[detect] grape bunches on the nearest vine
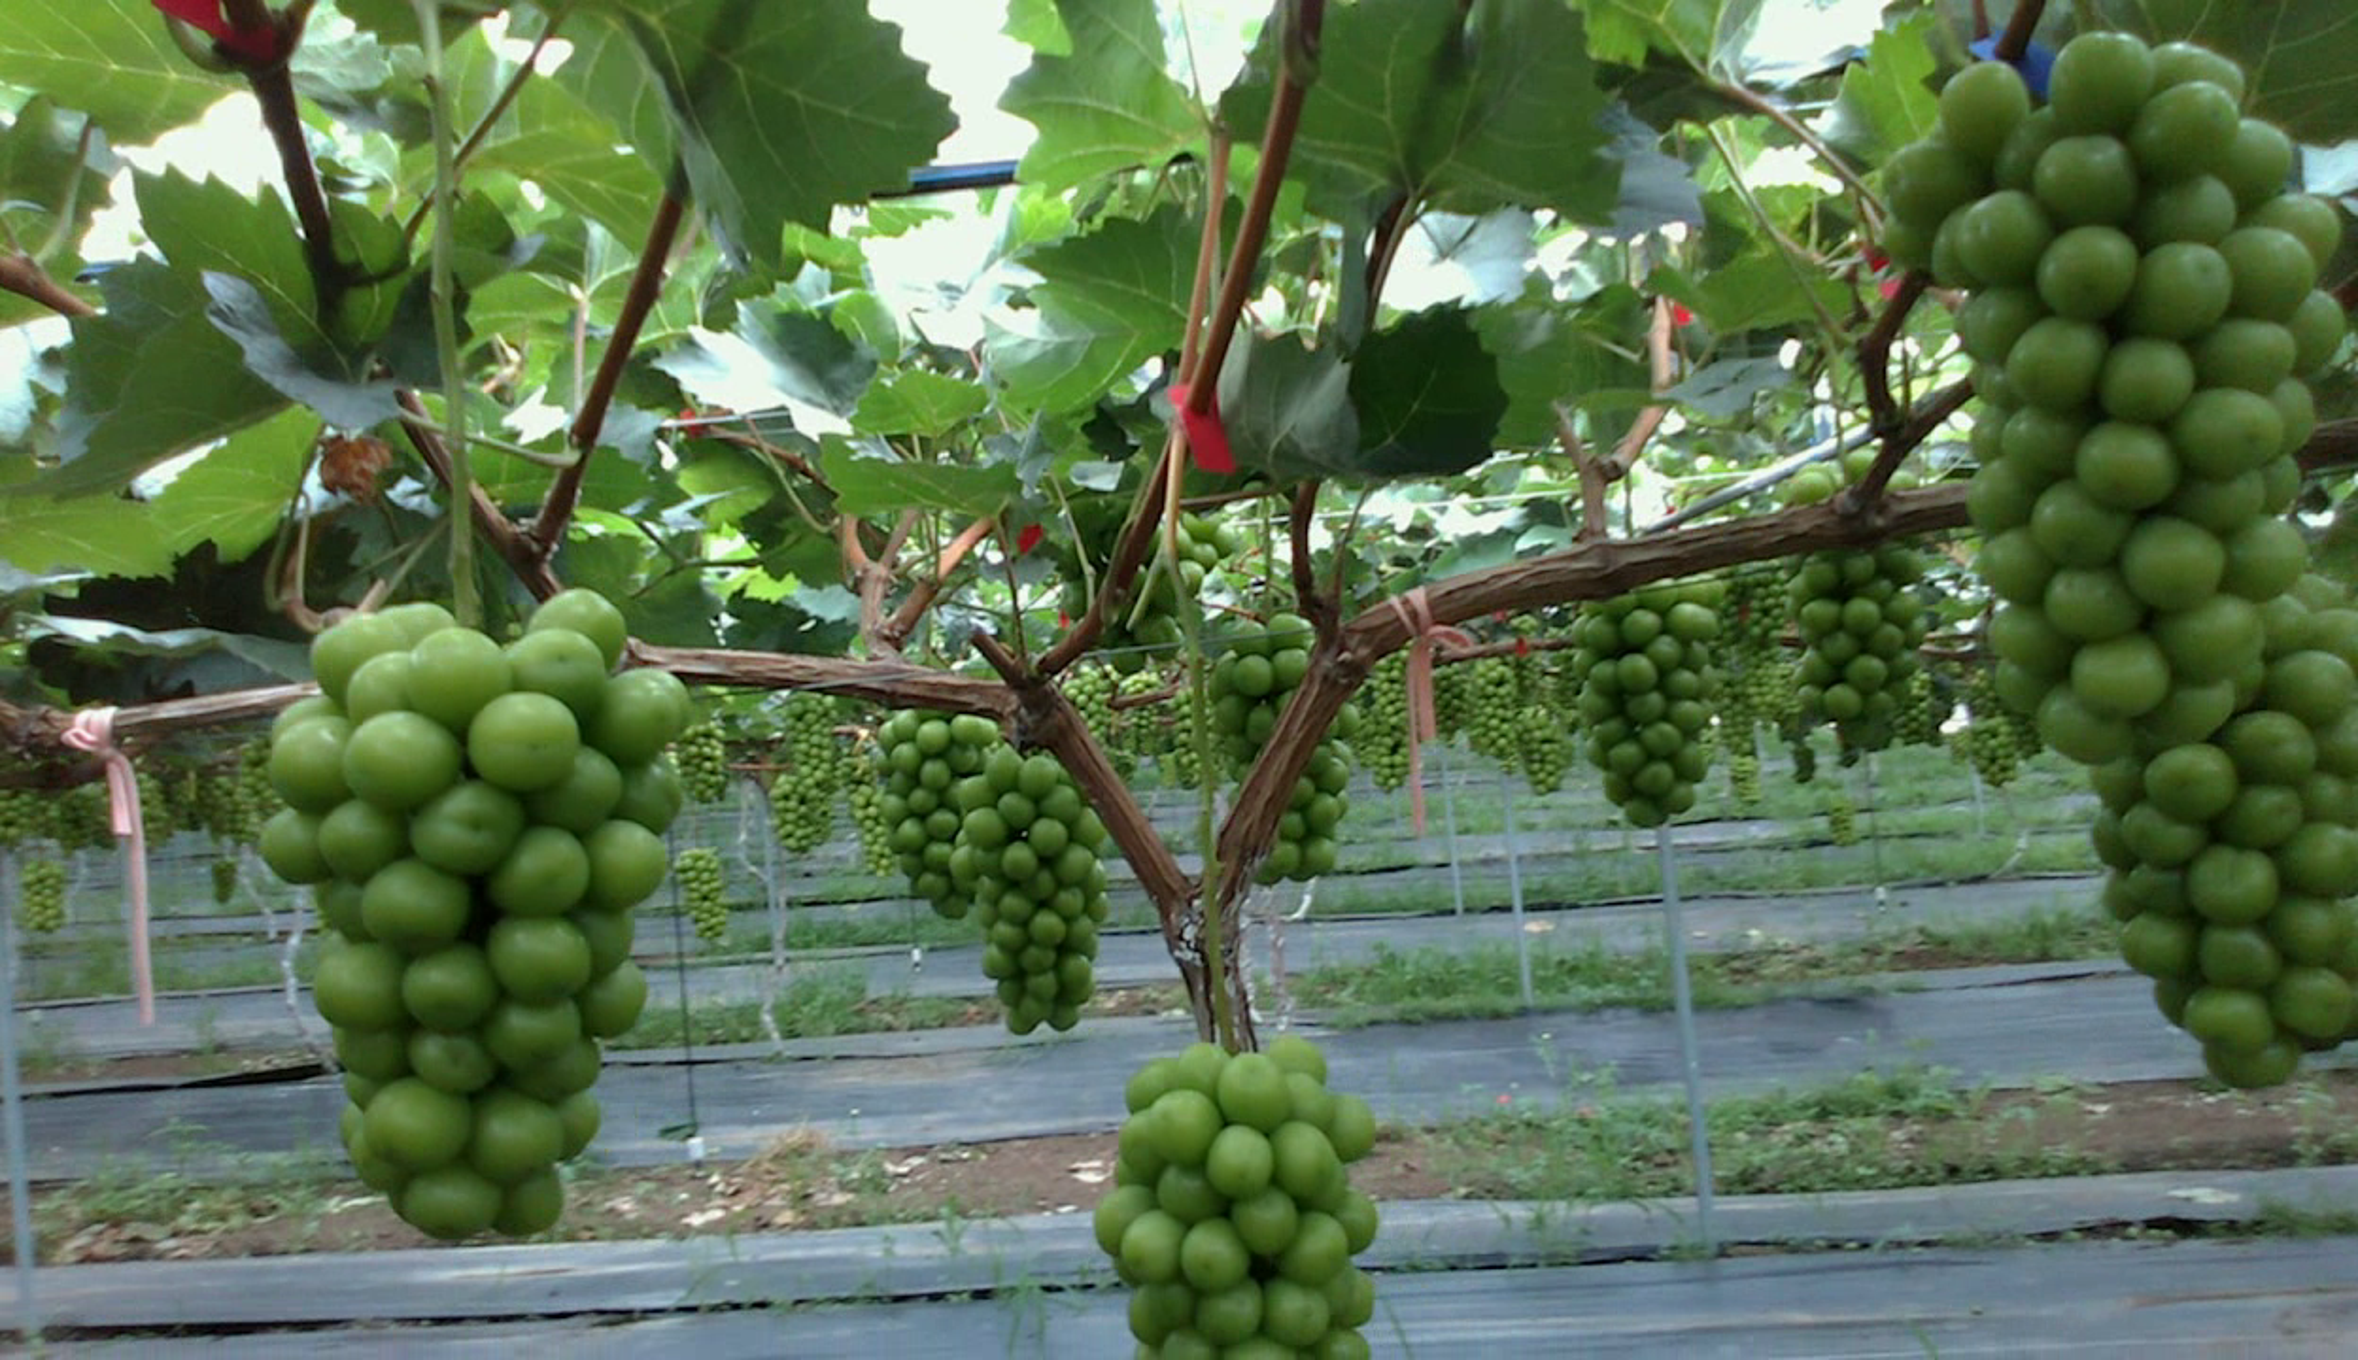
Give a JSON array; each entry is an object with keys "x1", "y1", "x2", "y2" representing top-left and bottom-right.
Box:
[
  {"x1": 1092, "y1": 1035, "x2": 1379, "y2": 1358},
  {"x1": 2086, "y1": 570, "x2": 2356, "y2": 1086},
  {"x1": 259, "y1": 587, "x2": 693, "y2": 1245},
  {"x1": 1884, "y1": 28, "x2": 2343, "y2": 767}
]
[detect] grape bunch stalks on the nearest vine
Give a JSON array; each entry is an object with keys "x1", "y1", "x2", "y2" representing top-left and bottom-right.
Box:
[
  {"x1": 412, "y1": 4, "x2": 484, "y2": 627},
  {"x1": 1162, "y1": 427, "x2": 1241, "y2": 1058},
  {"x1": 2073, "y1": 4, "x2": 2097, "y2": 38}
]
